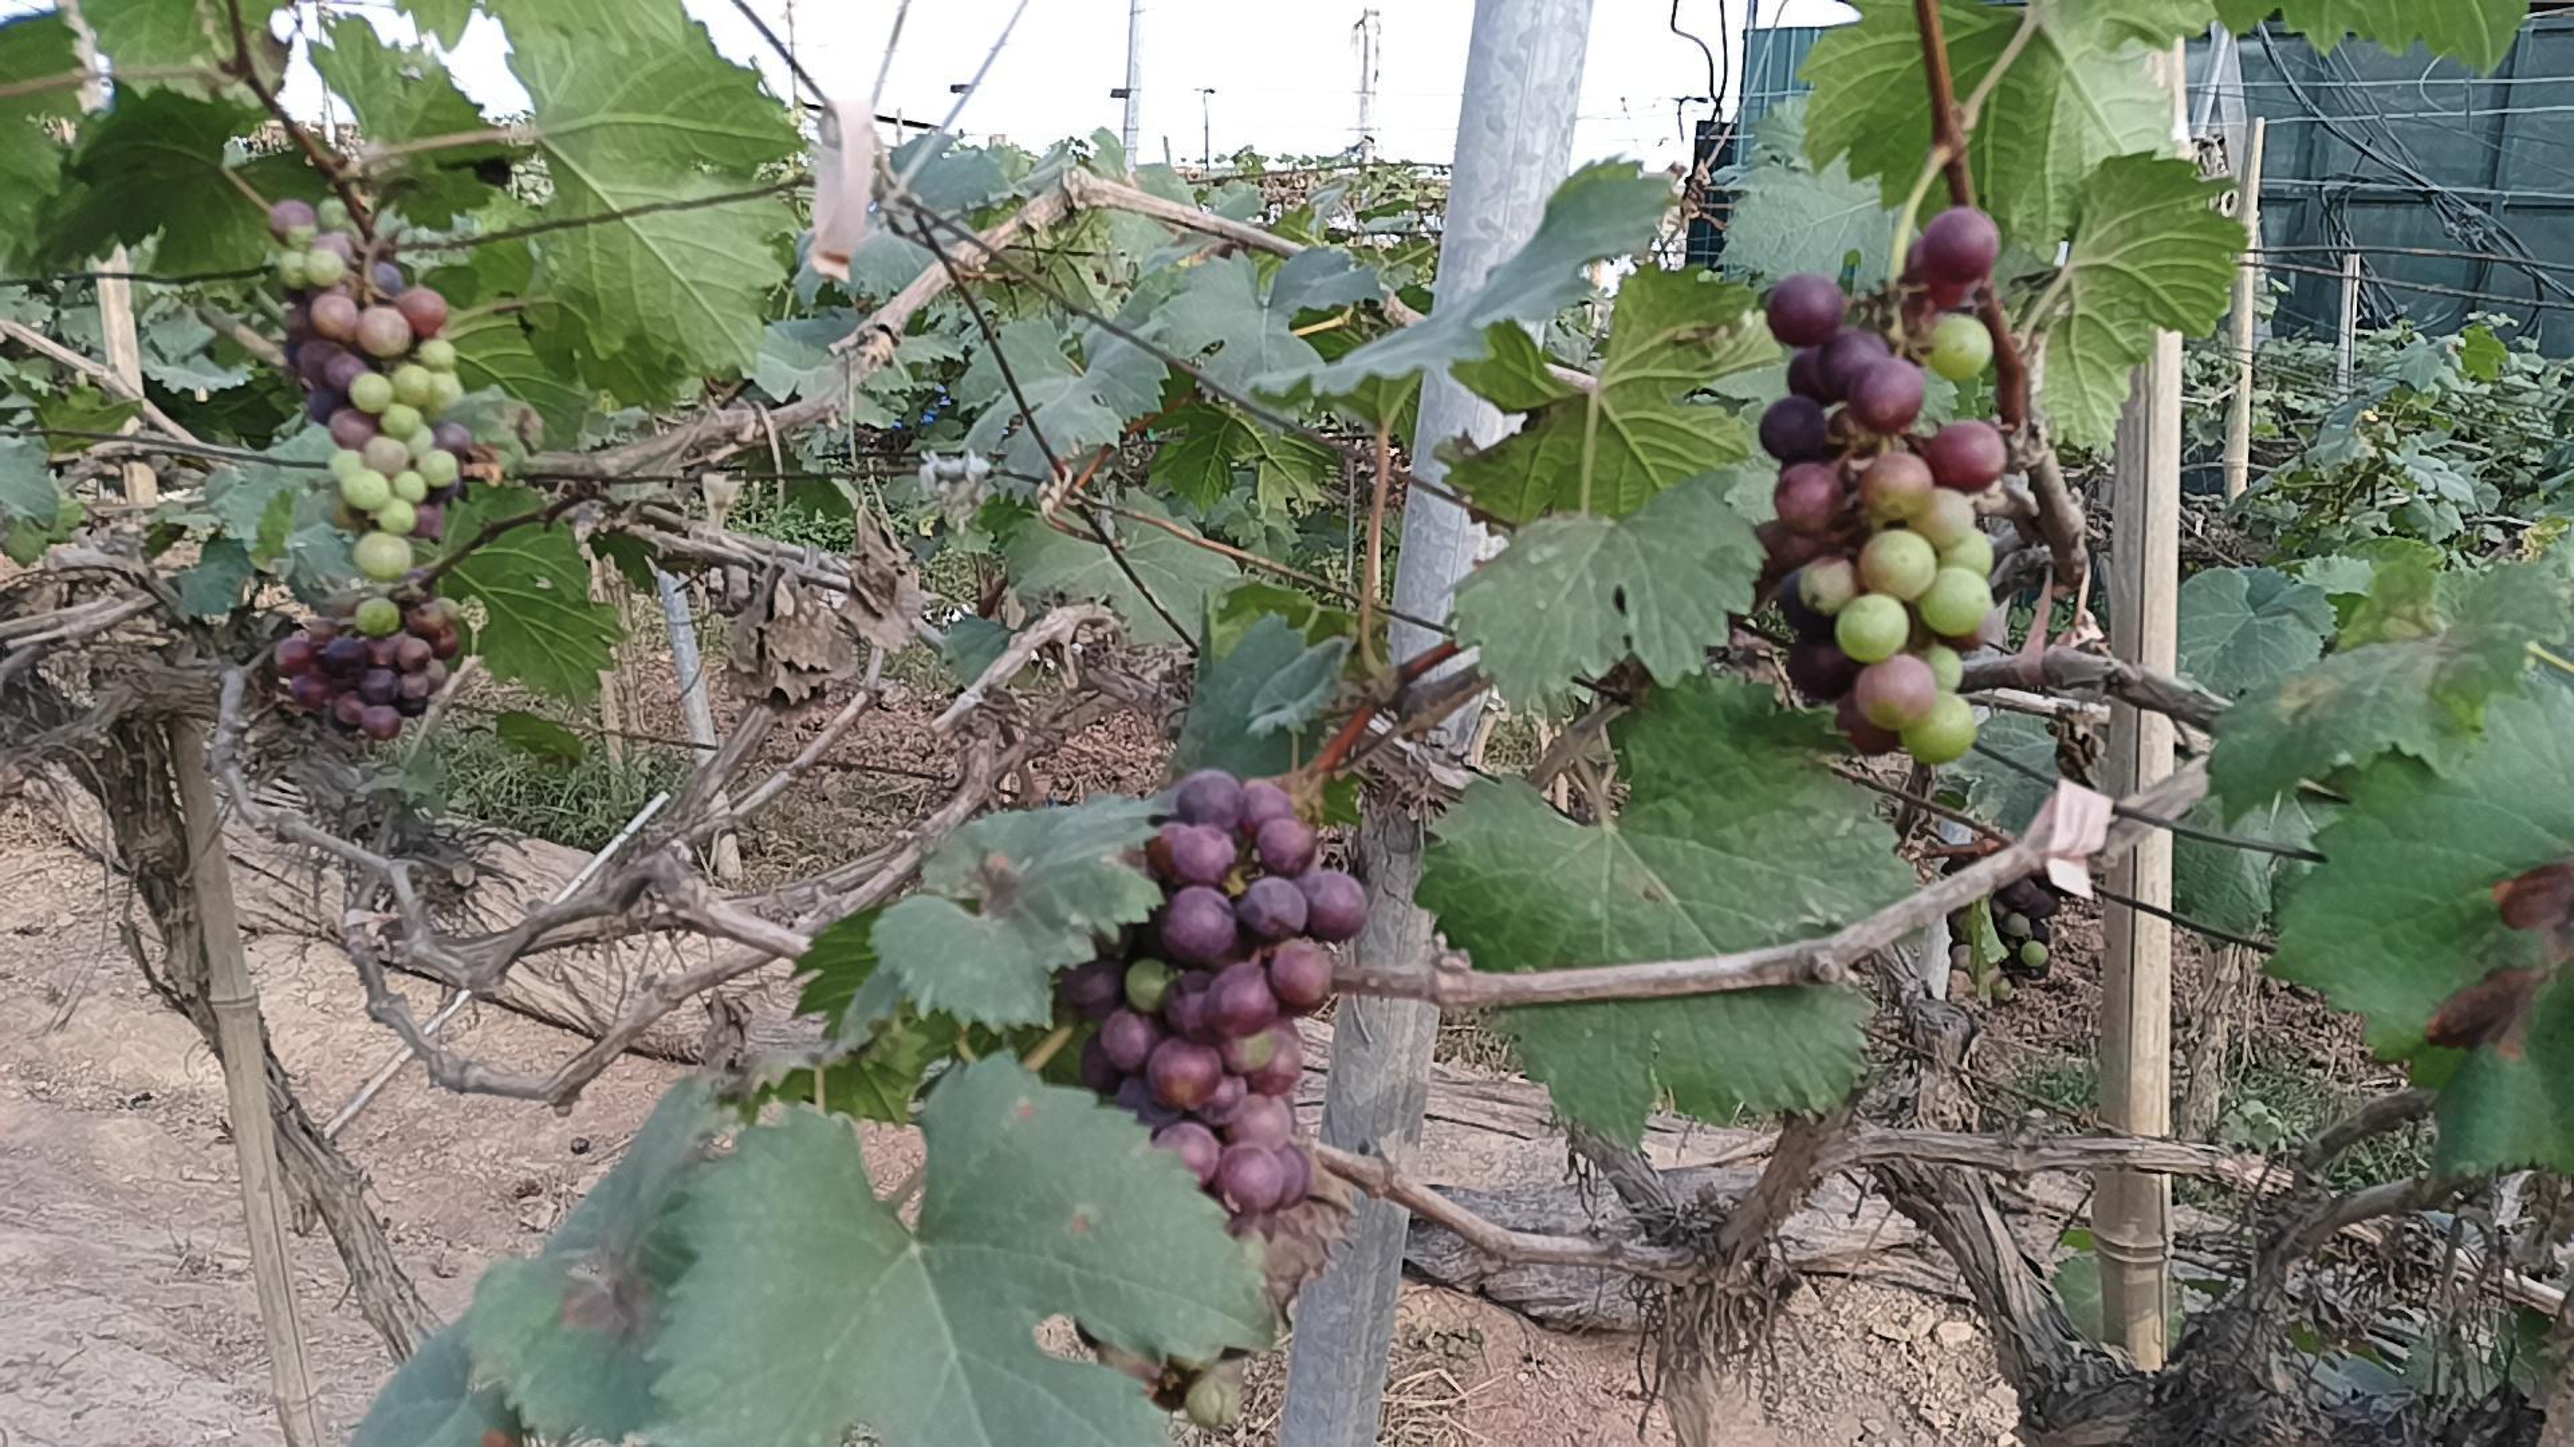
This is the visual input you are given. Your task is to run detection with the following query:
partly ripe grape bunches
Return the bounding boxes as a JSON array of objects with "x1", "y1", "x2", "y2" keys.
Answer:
[
  {"x1": 273, "y1": 568, "x2": 460, "y2": 740},
  {"x1": 1944, "y1": 855, "x2": 2075, "y2": 997},
  {"x1": 1062, "y1": 769, "x2": 1367, "y2": 1434},
  {"x1": 268, "y1": 196, "x2": 471, "y2": 577},
  {"x1": 1759, "y1": 206, "x2": 2007, "y2": 764}
]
